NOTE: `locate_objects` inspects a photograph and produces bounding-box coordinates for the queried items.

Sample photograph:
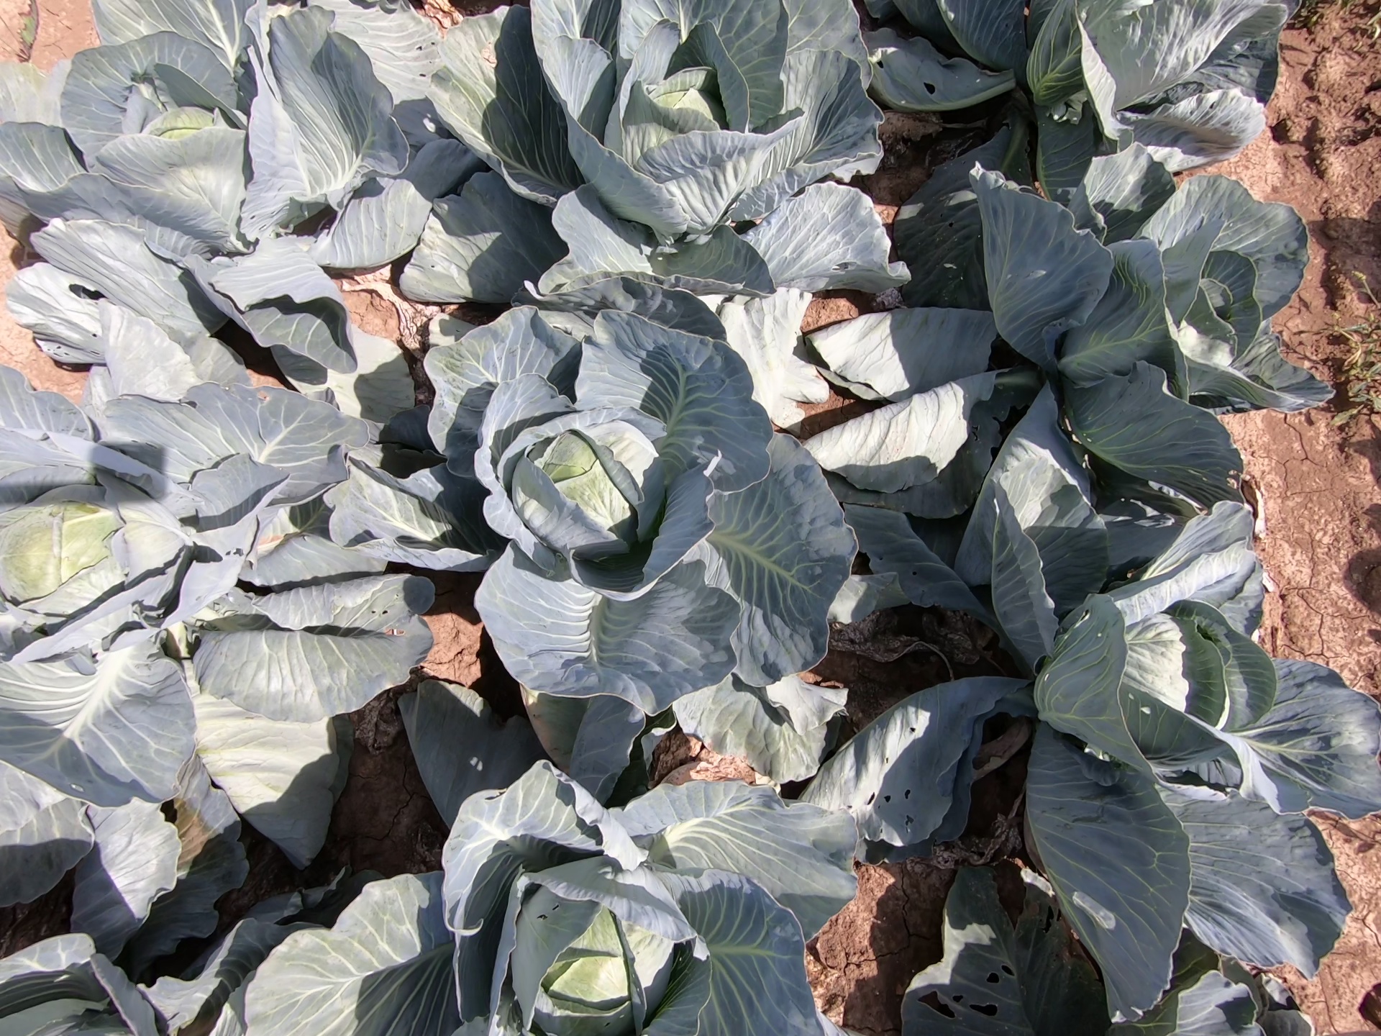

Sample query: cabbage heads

[1090,618,1229,745]
[135,106,248,226]
[1092,287,1216,381]
[517,419,661,553]
[516,864,673,1035]
[623,83,733,186]
[1,486,175,623]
